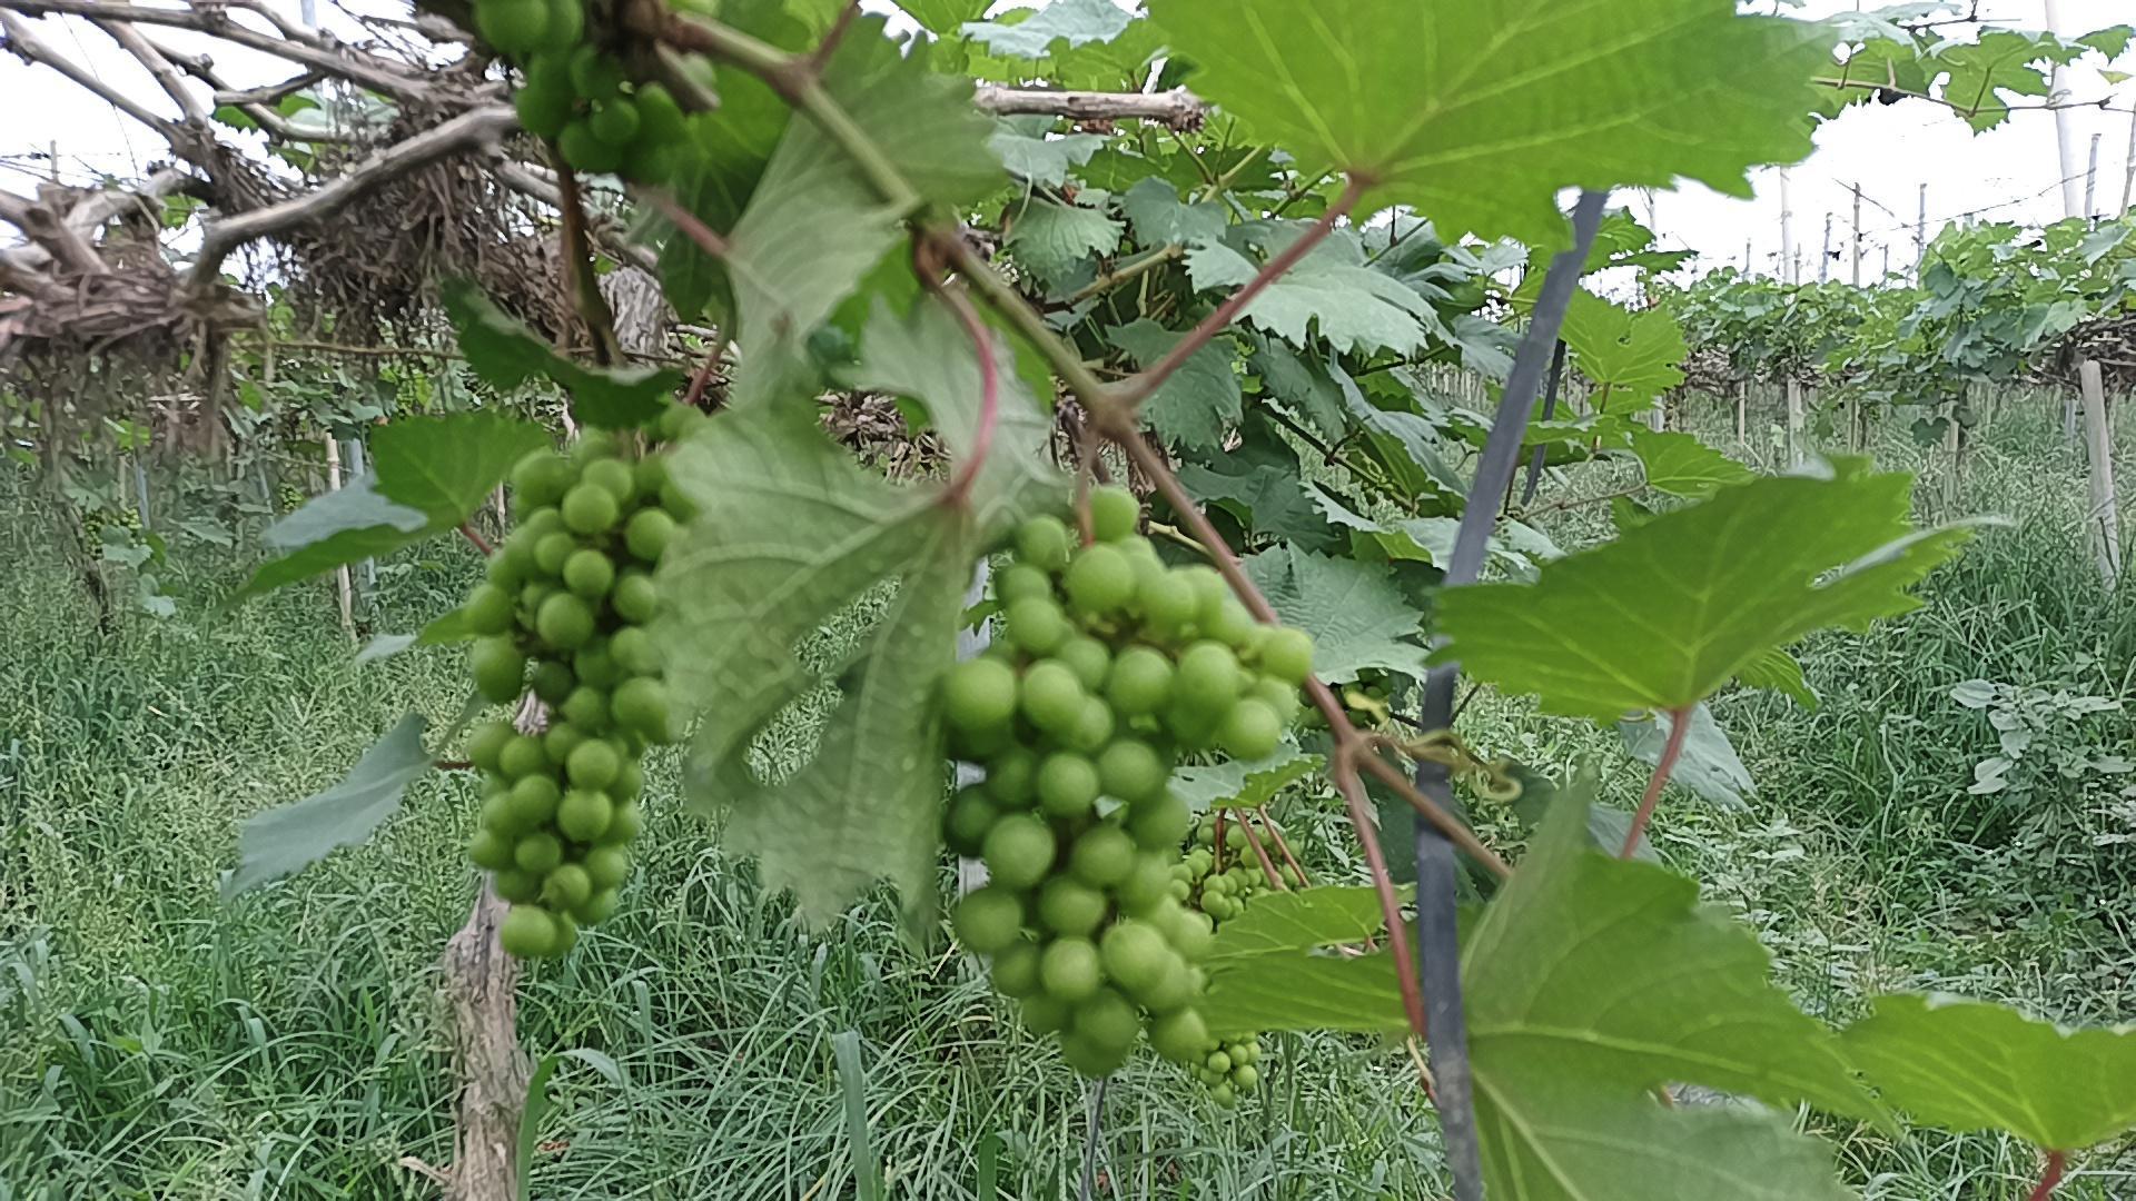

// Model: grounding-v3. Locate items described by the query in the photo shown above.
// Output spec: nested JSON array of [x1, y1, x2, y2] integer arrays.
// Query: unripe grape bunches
[[472, 0, 696, 185], [1298, 668, 1395, 733], [462, 405, 702, 957], [1169, 814, 1311, 1110], [941, 483, 1314, 1074]]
